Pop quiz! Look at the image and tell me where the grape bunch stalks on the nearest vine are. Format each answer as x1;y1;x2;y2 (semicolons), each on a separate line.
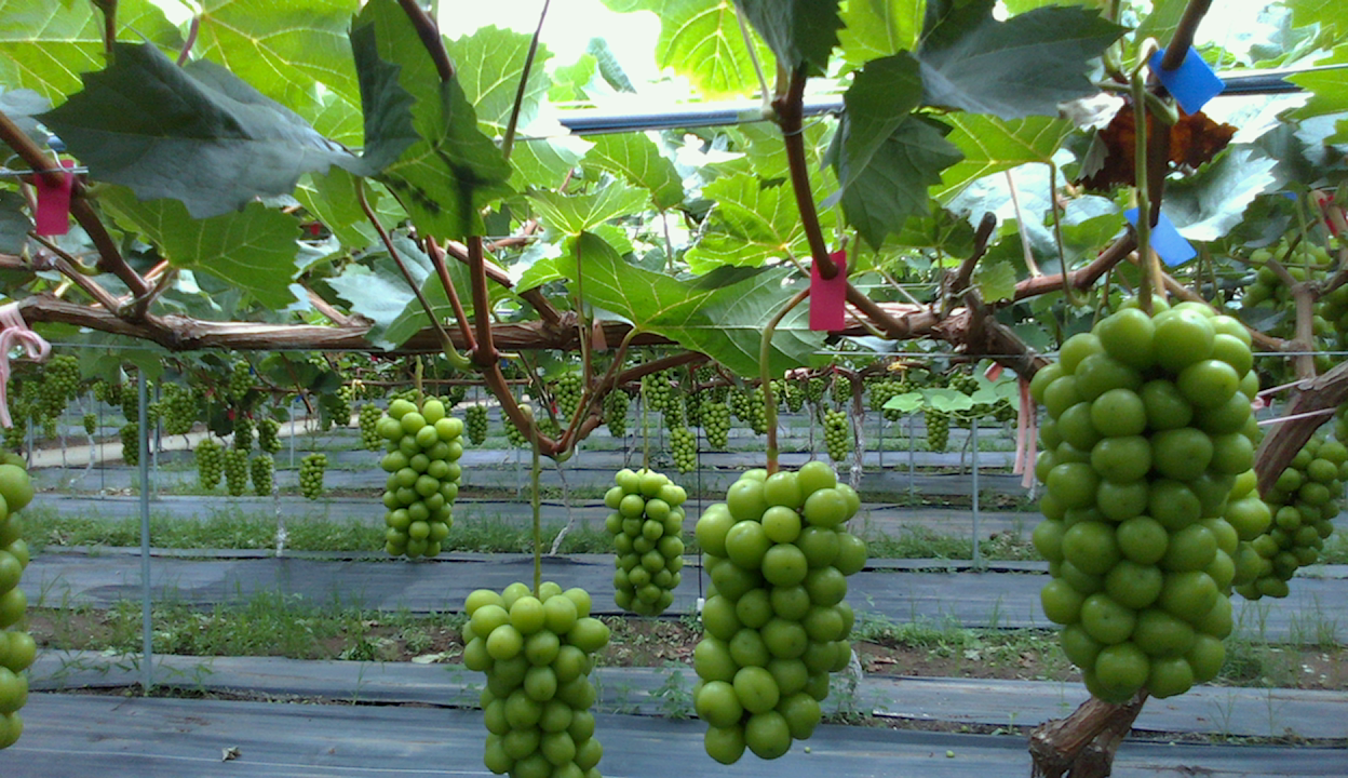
1131;73;1149;316
760;287;810;479
518;404;540;599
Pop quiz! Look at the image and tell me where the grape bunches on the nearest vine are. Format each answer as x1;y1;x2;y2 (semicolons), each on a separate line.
1028;294;1270;703
0;447;37;749
692;461;866;766
462;581;610;777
